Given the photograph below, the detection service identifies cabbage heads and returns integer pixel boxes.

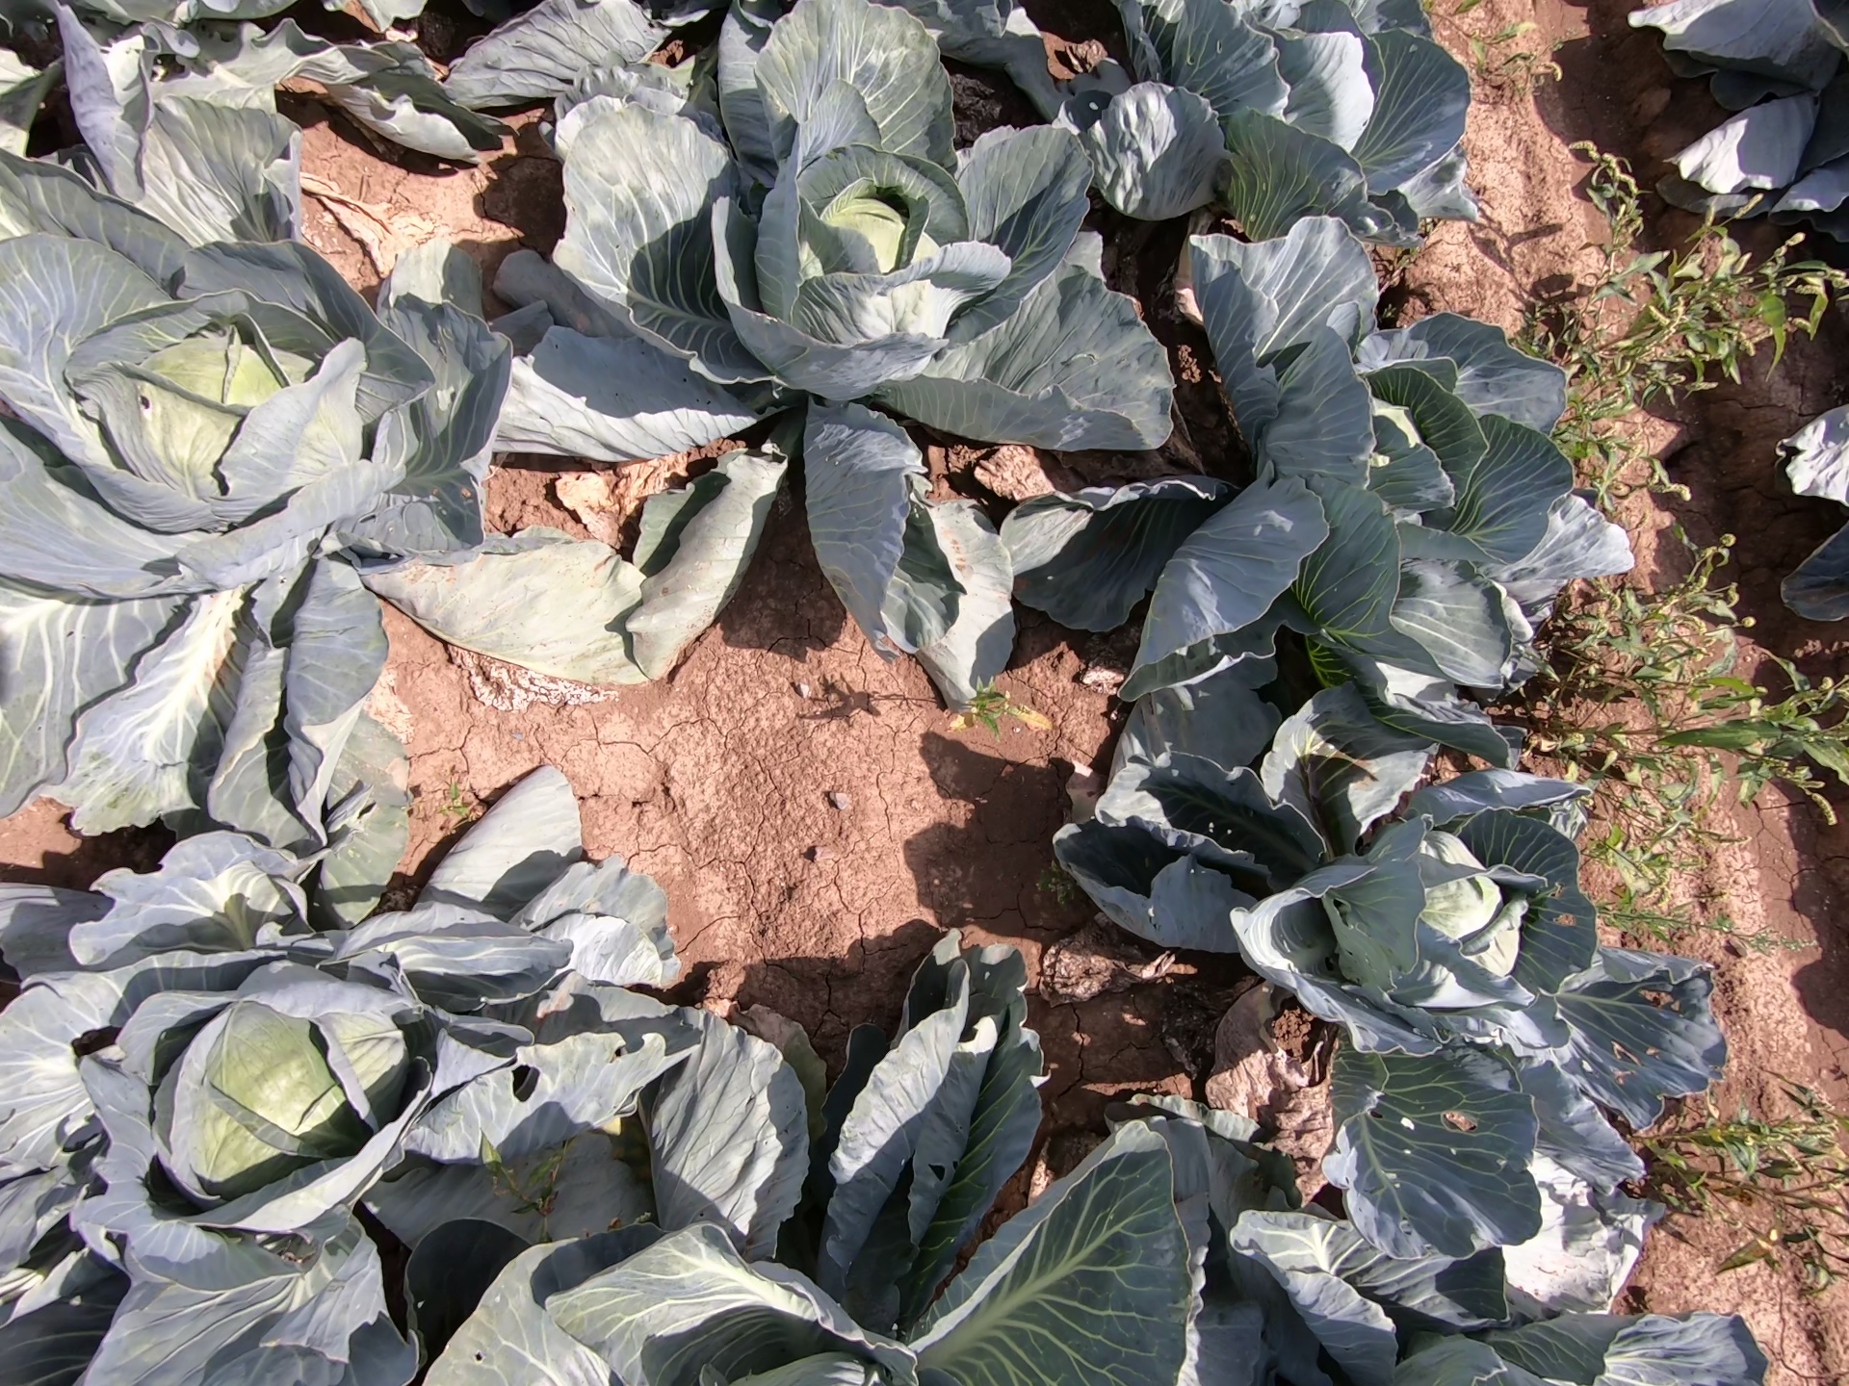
[1224,28,1355,144]
[147,984,409,1208]
[1308,395,1428,528]
[771,197,953,374]
[118,336,348,521]
[1347,832,1520,1013]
